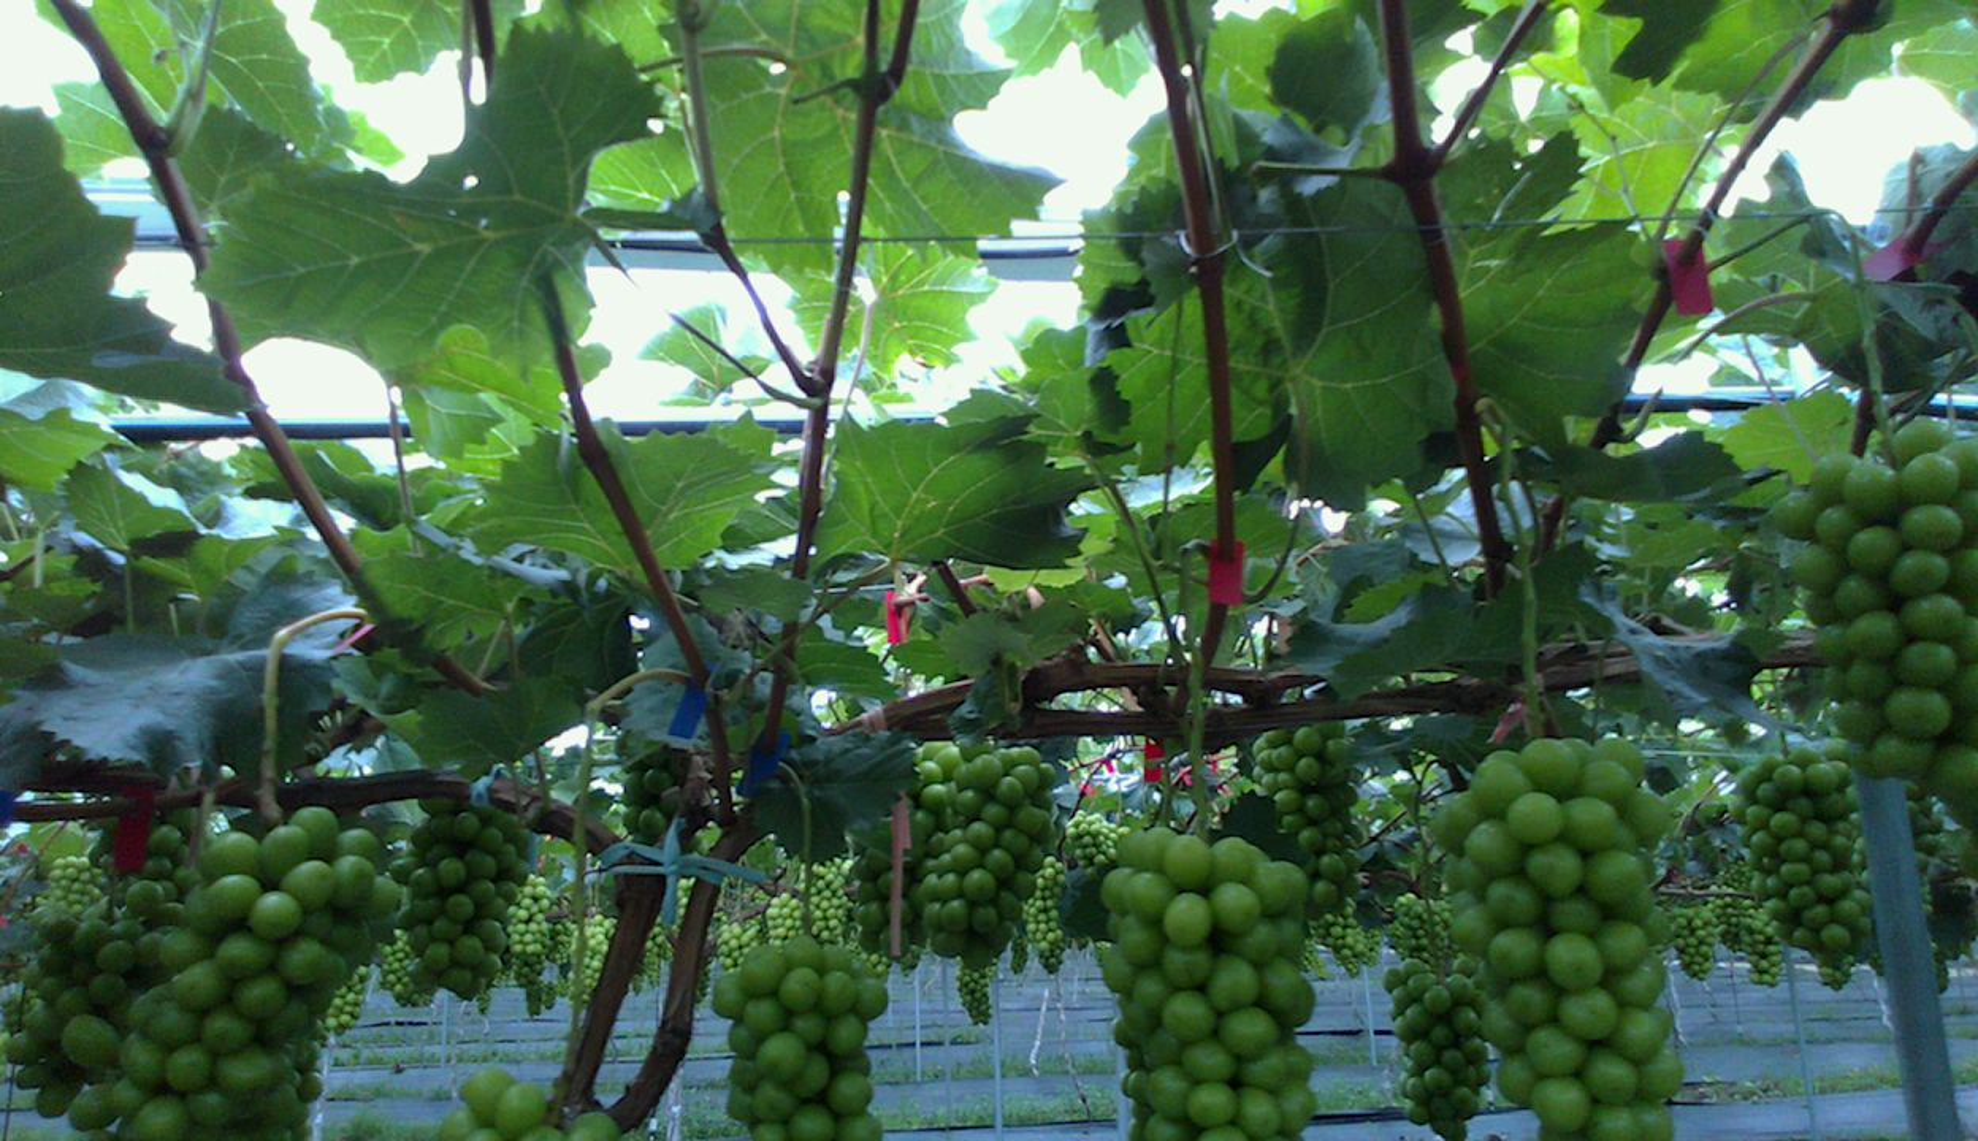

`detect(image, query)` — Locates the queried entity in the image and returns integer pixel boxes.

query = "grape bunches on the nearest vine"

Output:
[441,1065,621,1139]
[1770,420,1976,808]
[116,808,406,1139]
[1433,735,1682,1139]
[715,935,891,1139]
[1100,826,1317,1139]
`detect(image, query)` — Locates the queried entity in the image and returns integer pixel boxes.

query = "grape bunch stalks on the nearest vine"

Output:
[1179,539,1209,838]
[552,669,686,1125]
[260,609,366,827]
[1709,208,1897,466]
[780,764,813,932]
[1485,399,1542,738]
